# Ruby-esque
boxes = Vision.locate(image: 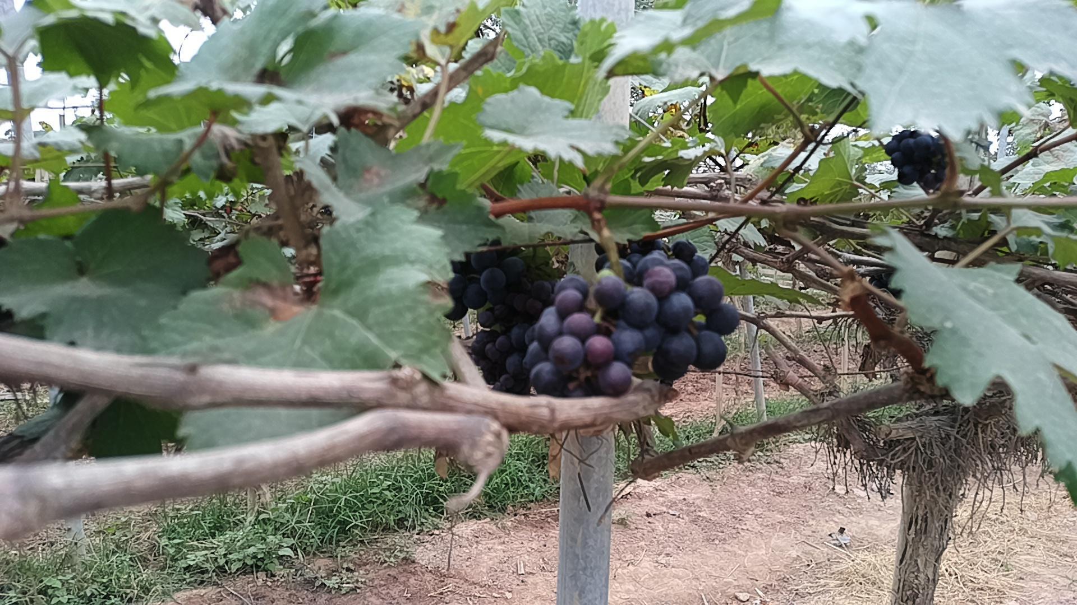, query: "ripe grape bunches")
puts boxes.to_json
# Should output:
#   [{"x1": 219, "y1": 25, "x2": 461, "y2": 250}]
[
  {"x1": 883, "y1": 129, "x2": 952, "y2": 194},
  {"x1": 447, "y1": 240, "x2": 739, "y2": 396}
]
